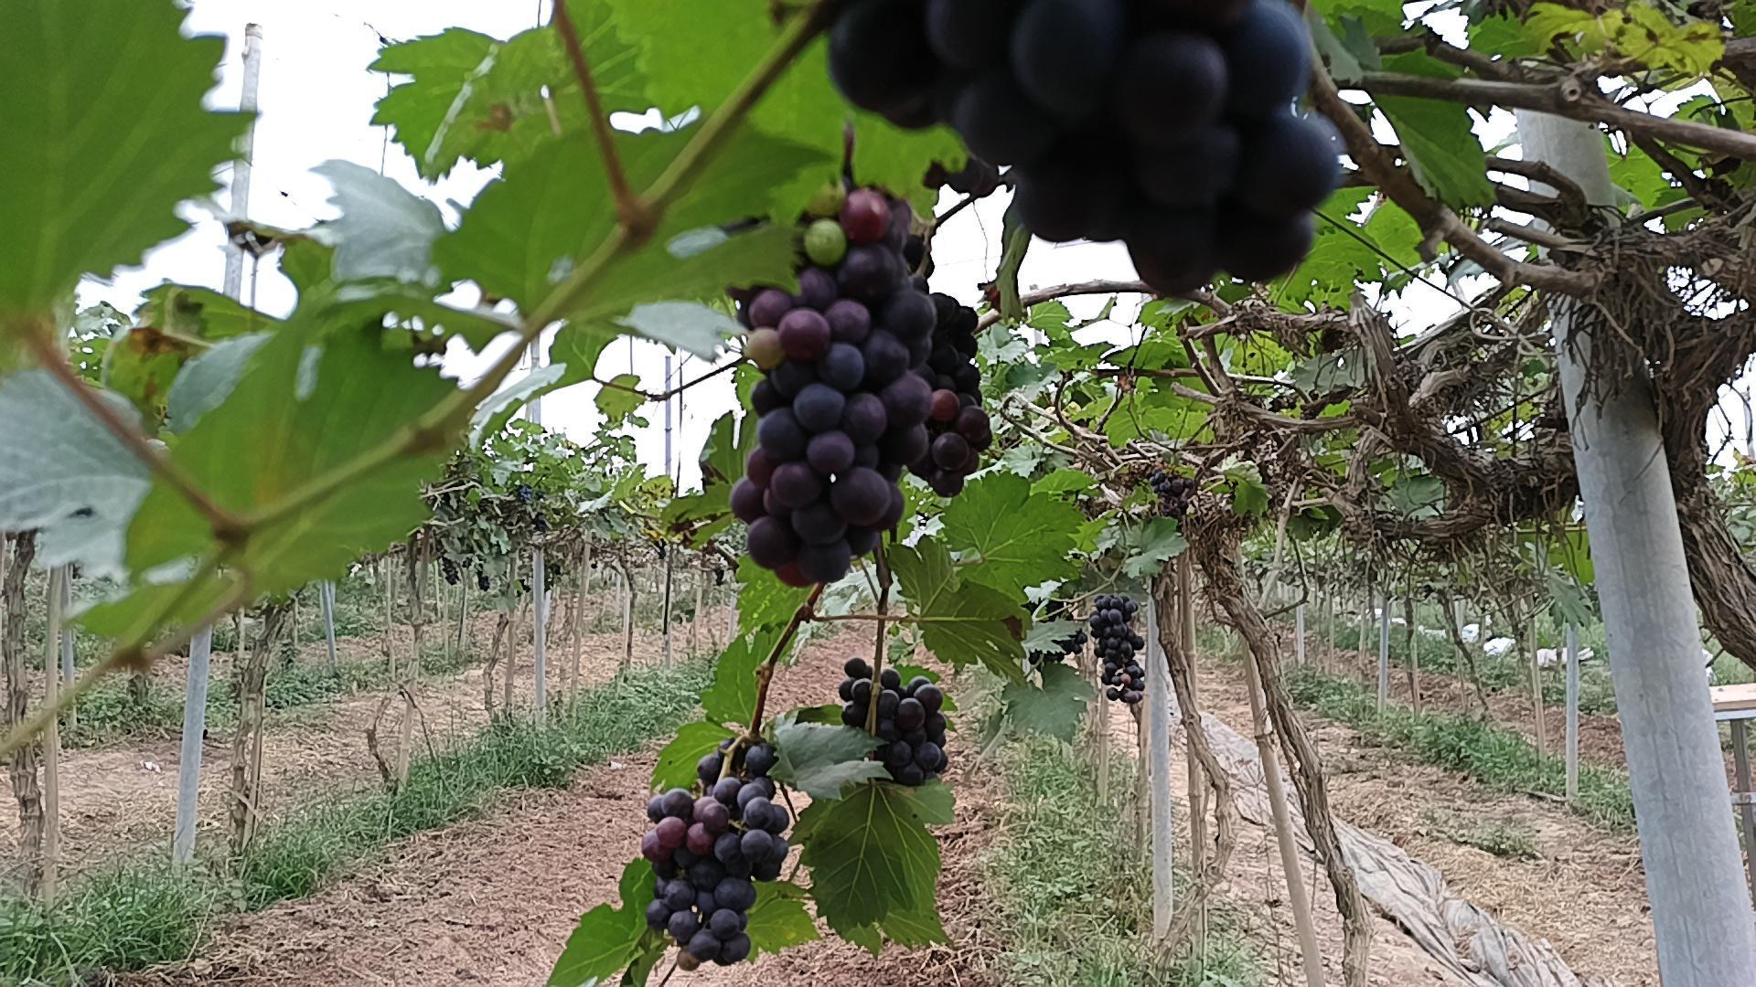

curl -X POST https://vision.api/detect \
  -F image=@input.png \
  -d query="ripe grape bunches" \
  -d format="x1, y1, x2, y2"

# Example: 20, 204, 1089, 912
904, 235, 993, 498
1150, 469, 1199, 524
641, 736, 796, 970
1024, 600, 1084, 673
830, 0, 1338, 294
839, 658, 948, 786
1088, 594, 1148, 704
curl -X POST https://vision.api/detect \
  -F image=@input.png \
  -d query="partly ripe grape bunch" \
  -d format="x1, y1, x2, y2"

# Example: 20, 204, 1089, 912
727, 175, 936, 588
